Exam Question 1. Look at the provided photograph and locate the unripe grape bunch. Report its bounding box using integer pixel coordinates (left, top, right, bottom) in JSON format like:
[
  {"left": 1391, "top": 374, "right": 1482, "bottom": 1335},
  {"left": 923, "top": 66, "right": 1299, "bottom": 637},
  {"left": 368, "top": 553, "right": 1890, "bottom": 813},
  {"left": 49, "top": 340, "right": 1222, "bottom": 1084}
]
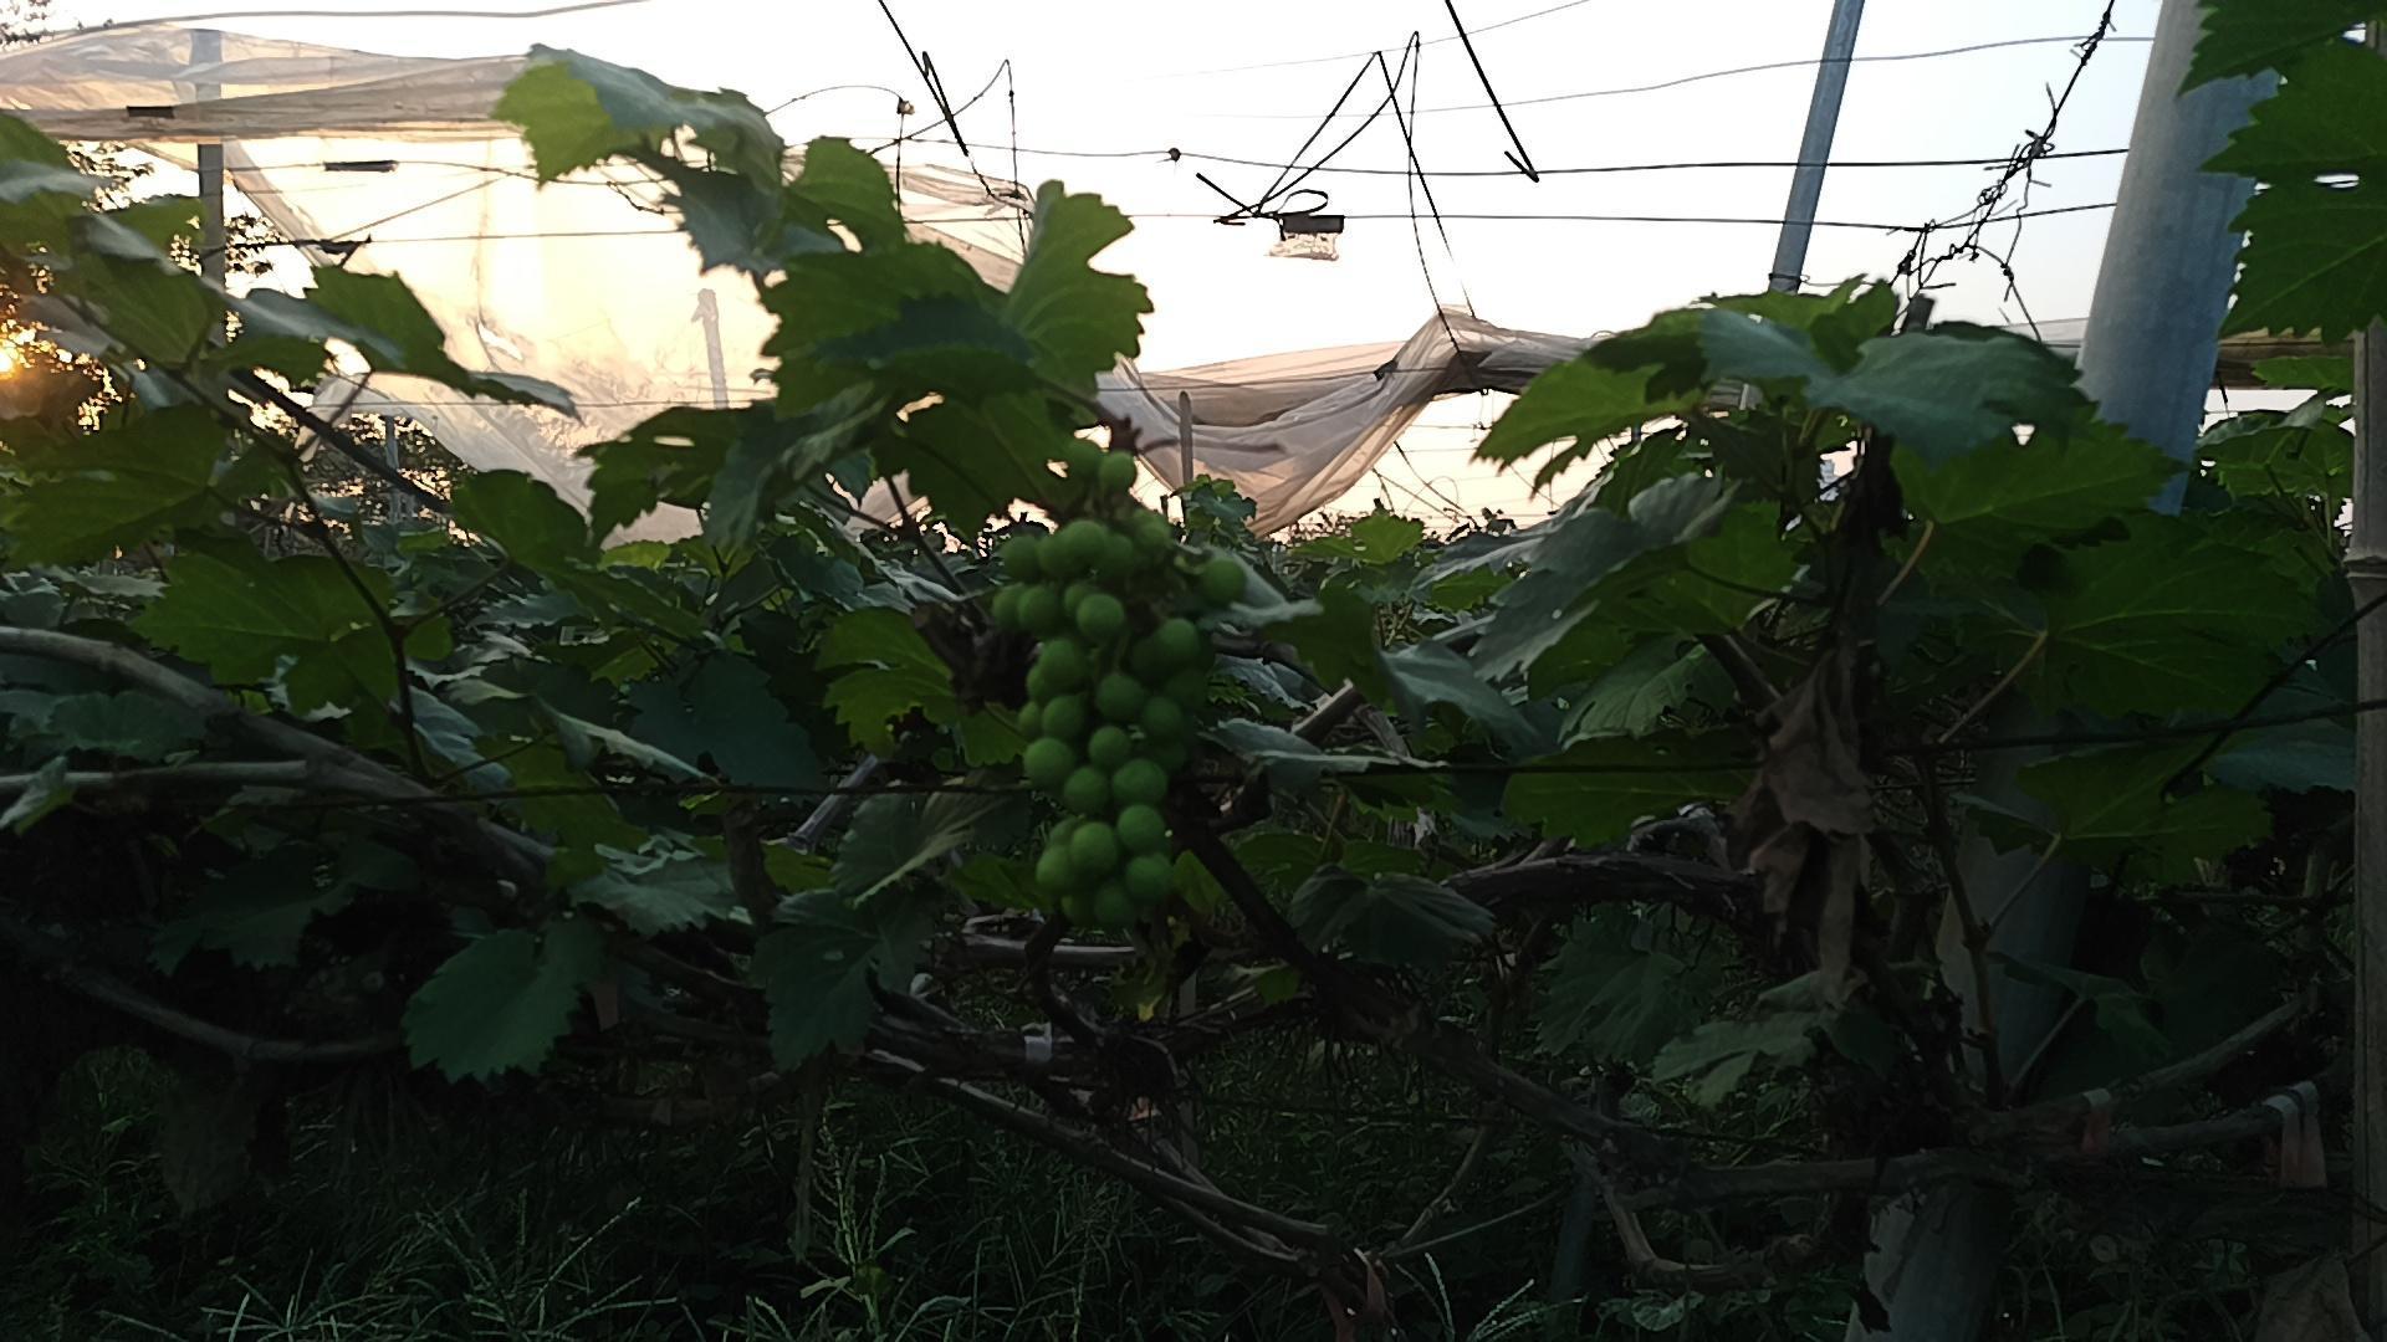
[{"left": 992, "top": 437, "right": 1243, "bottom": 920}]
